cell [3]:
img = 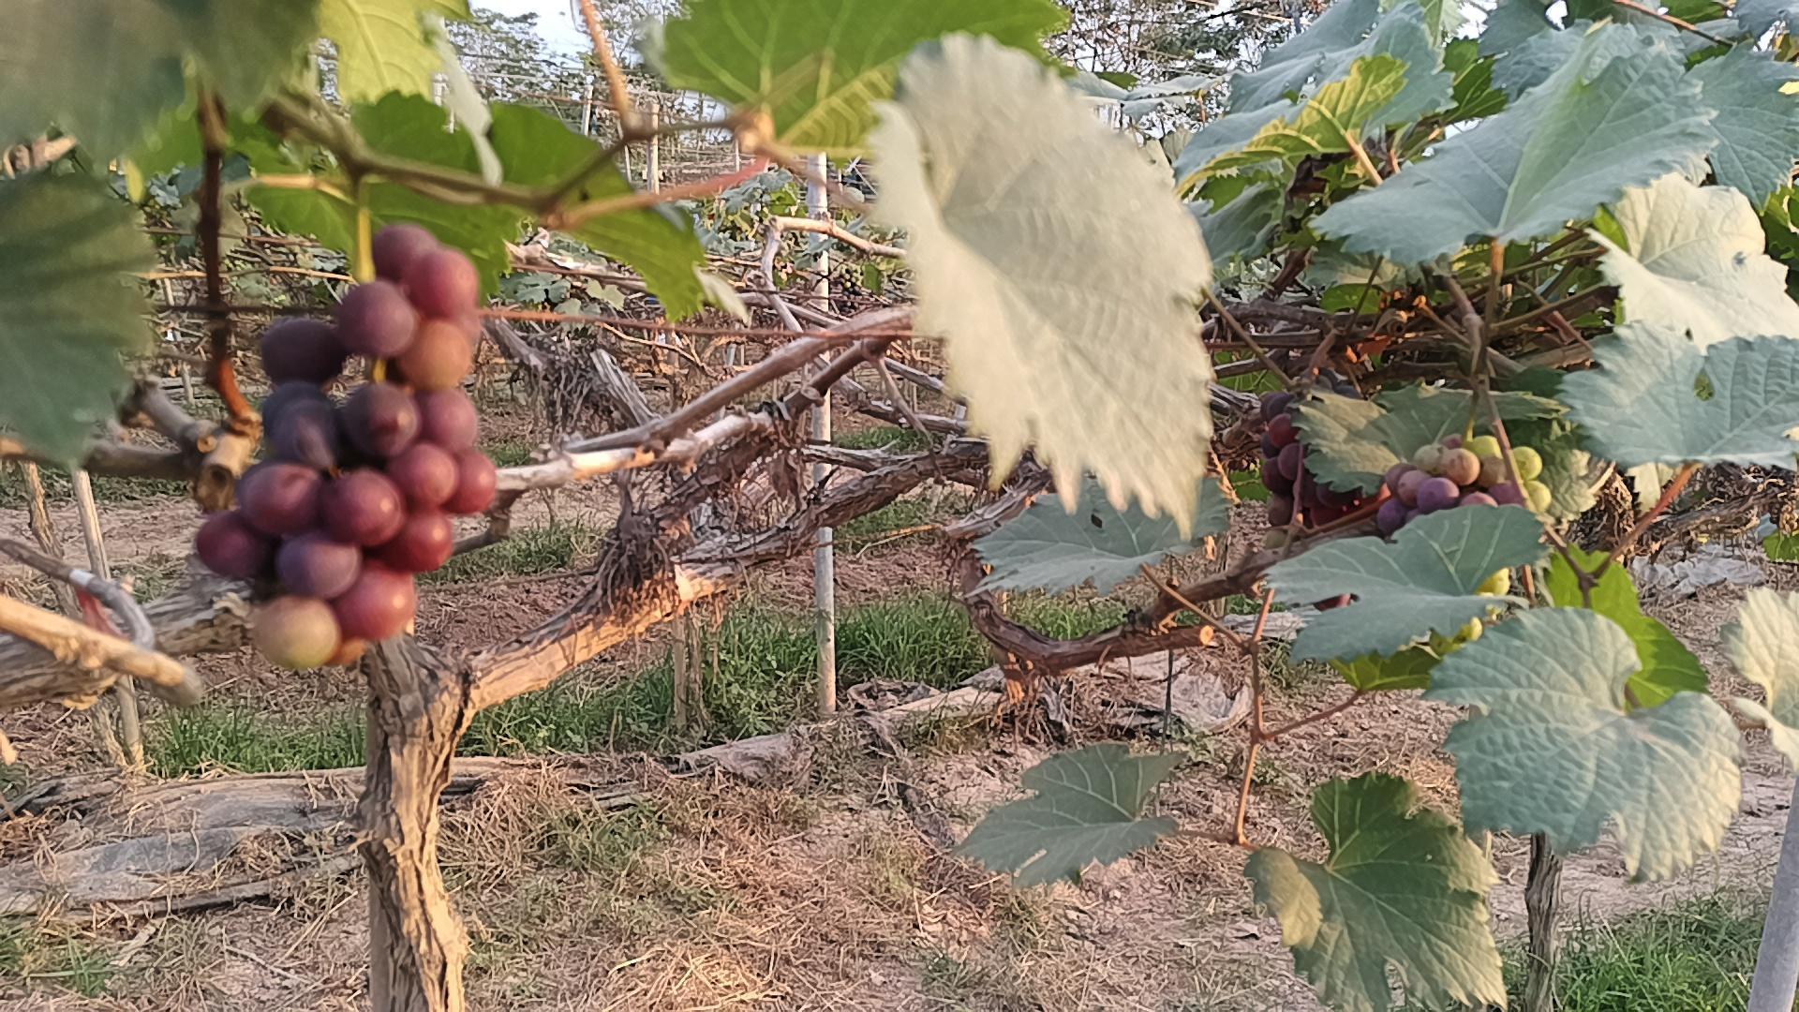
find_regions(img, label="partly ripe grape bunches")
[1378,431,1550,658]
[1260,367,1367,528]
[196,223,496,666]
